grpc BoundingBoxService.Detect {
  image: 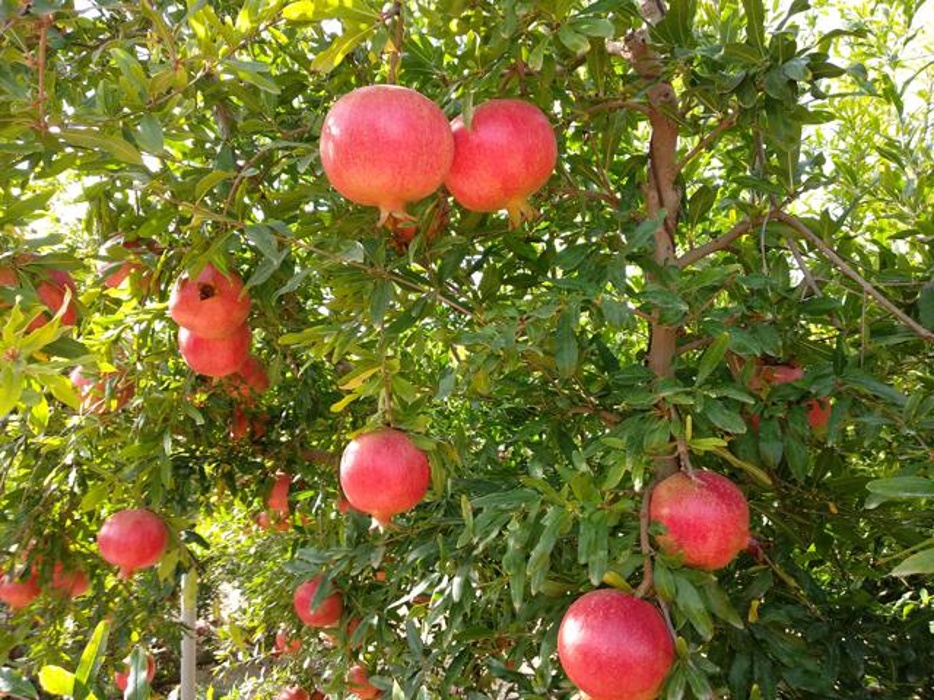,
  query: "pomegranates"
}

[320,83,452,233]
[177,324,250,378]
[69,366,134,416]
[236,356,269,405]
[349,666,382,700]
[98,509,169,580]
[277,685,330,700]
[231,407,264,440]
[293,575,344,629]
[0,563,42,608]
[387,197,449,255]
[557,589,676,700]
[115,652,156,691]
[772,363,833,429]
[51,561,88,598]
[340,427,431,535]
[168,261,252,337]
[442,99,559,233]
[267,472,292,516]
[257,510,290,531]
[0,252,79,335]
[651,468,773,570]
[96,233,163,296]
[271,630,302,659]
